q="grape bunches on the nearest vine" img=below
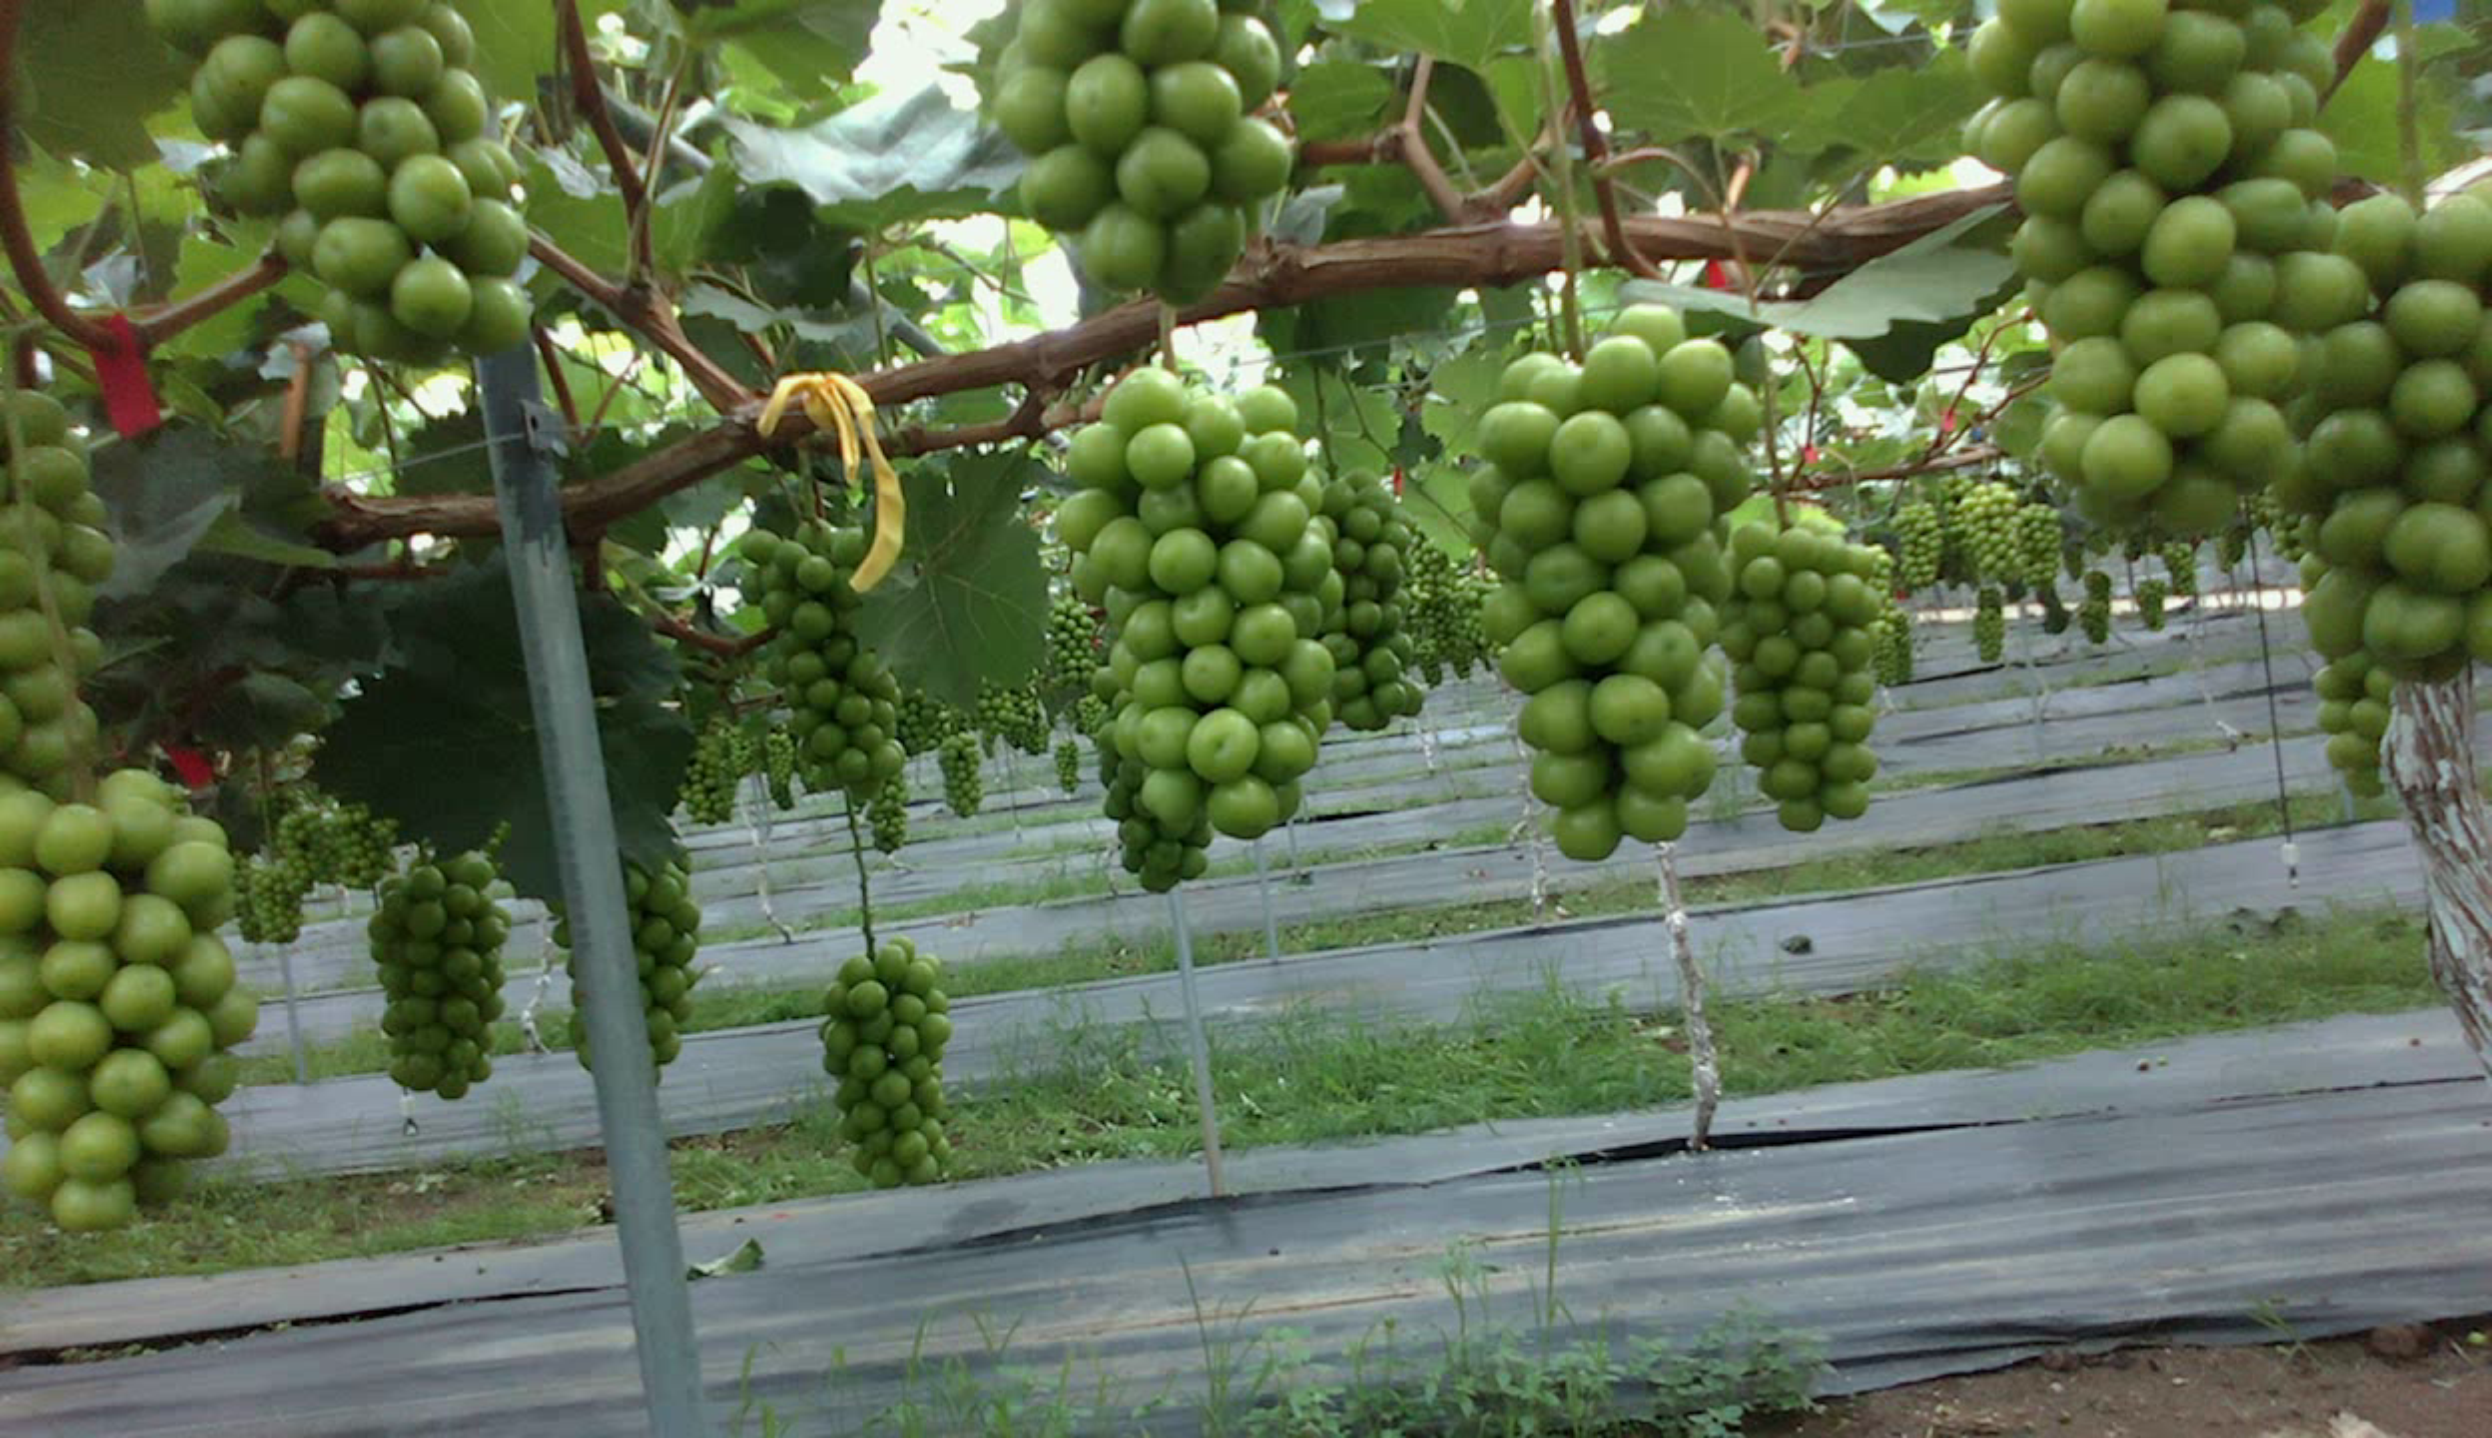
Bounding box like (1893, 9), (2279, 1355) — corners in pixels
(146, 2), (539, 367)
(992, 2), (1294, 302)
(1472, 308), (1765, 865)
(2278, 178), (2490, 687)
(0, 769), (260, 1238)
(1949, 0), (2354, 535)
(1052, 367), (1348, 839)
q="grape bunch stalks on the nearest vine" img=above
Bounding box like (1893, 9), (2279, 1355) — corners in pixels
(2394, 0), (2428, 214)
(1162, 308), (1172, 369)
(0, 314), (94, 801)
(1530, 2), (1583, 361)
